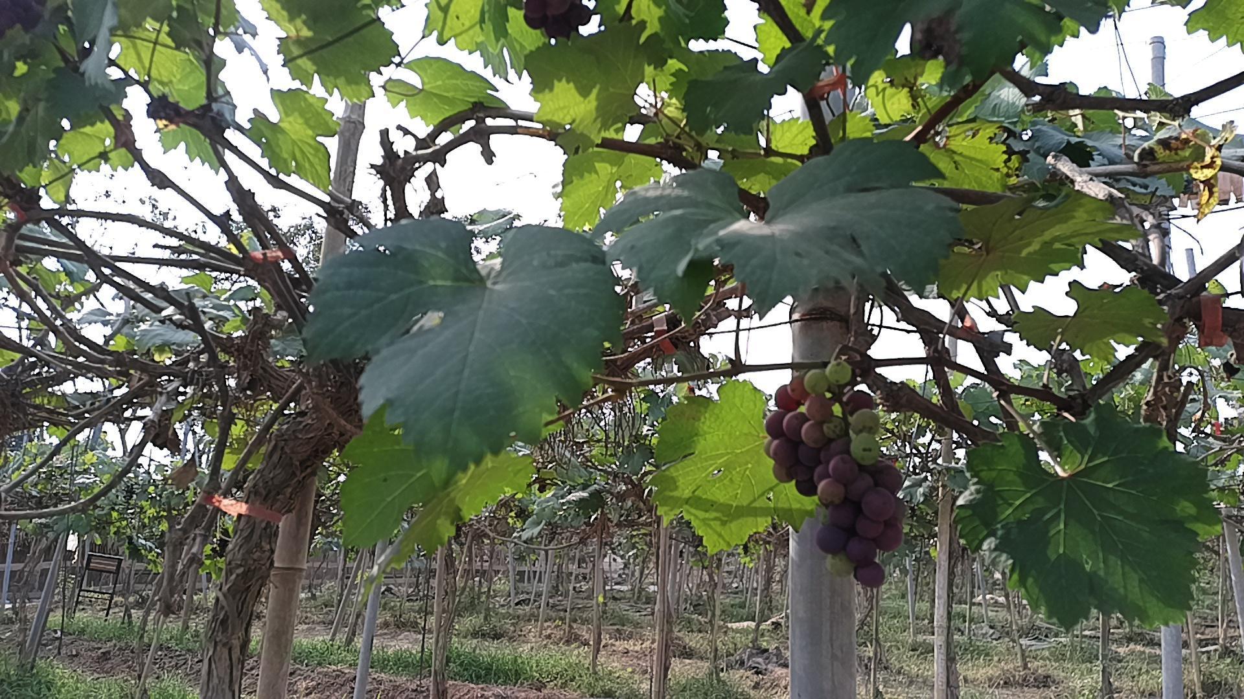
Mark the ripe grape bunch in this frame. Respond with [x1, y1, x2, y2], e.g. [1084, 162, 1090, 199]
[524, 0, 594, 42]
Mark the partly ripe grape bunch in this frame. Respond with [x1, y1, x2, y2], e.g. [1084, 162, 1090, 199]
[764, 359, 903, 588]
